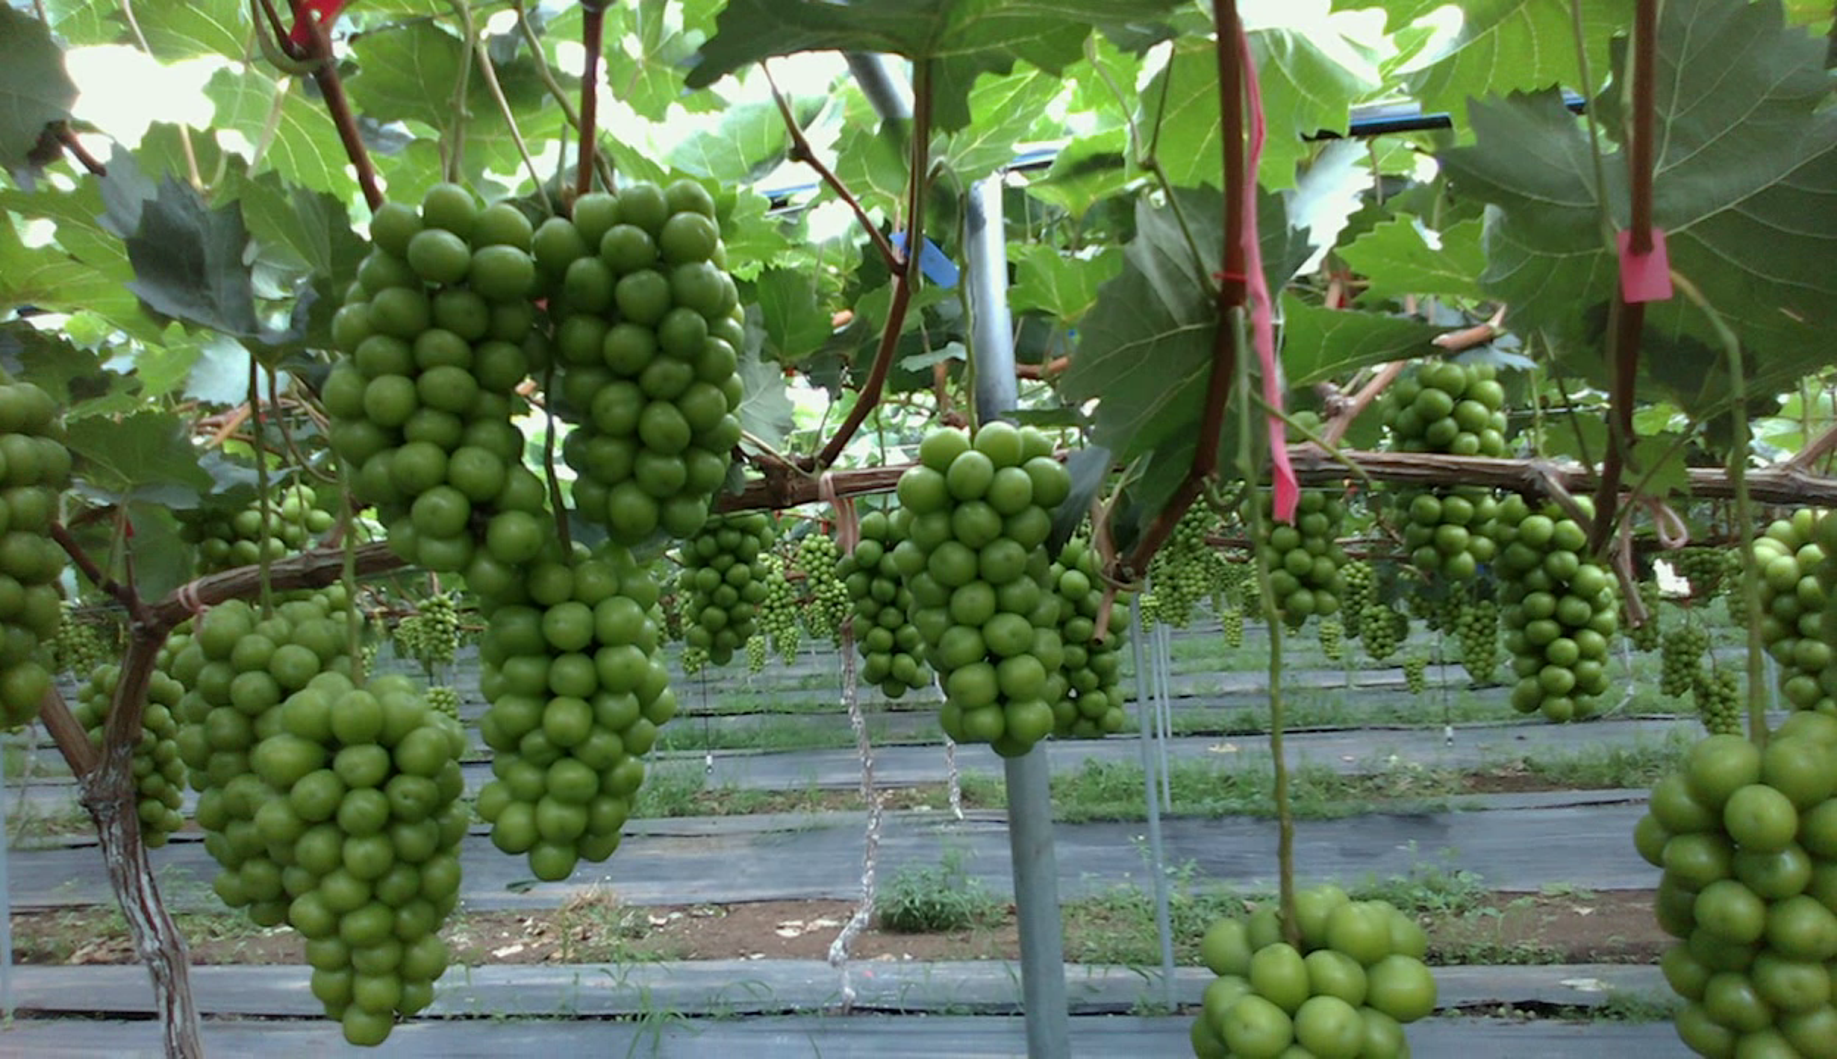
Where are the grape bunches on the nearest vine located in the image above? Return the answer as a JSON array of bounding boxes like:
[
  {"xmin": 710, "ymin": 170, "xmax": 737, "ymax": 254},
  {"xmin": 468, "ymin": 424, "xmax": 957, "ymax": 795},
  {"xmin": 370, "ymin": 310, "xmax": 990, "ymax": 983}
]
[
  {"xmin": 895, "ymin": 419, "xmax": 1072, "ymax": 759},
  {"xmin": 1191, "ymin": 883, "xmax": 1437, "ymax": 1058},
  {"xmin": 252, "ymin": 672, "xmax": 468, "ymax": 1047},
  {"xmin": 533, "ymin": 179, "xmax": 745, "ymax": 540},
  {"xmin": 321, "ymin": 182, "xmax": 551, "ymax": 599},
  {"xmin": 475, "ymin": 512, "xmax": 674, "ymax": 881},
  {"xmin": 1629, "ymin": 709, "xmax": 1836, "ymax": 1058},
  {"xmin": 174, "ymin": 599, "xmax": 349, "ymax": 928}
]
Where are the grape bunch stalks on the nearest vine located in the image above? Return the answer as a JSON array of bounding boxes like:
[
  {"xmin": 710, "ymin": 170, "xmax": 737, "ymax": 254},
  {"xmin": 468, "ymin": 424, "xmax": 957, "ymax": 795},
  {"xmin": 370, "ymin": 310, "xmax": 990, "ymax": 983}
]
[
  {"xmin": 447, "ymin": 1, "xmax": 475, "ymax": 184},
  {"xmin": 334, "ymin": 450, "xmax": 364, "ymax": 688},
  {"xmin": 927, "ymin": 157, "xmax": 979, "ymax": 438},
  {"xmin": 1226, "ymin": 302, "xmax": 1301, "ymax": 955},
  {"xmin": 1669, "ymin": 269, "xmax": 1768, "ymax": 750},
  {"xmin": 247, "ymin": 353, "xmax": 271, "ymax": 621},
  {"xmin": 543, "ymin": 360, "xmax": 573, "ymax": 568},
  {"xmin": 511, "ymin": 0, "xmax": 618, "ymax": 196}
]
